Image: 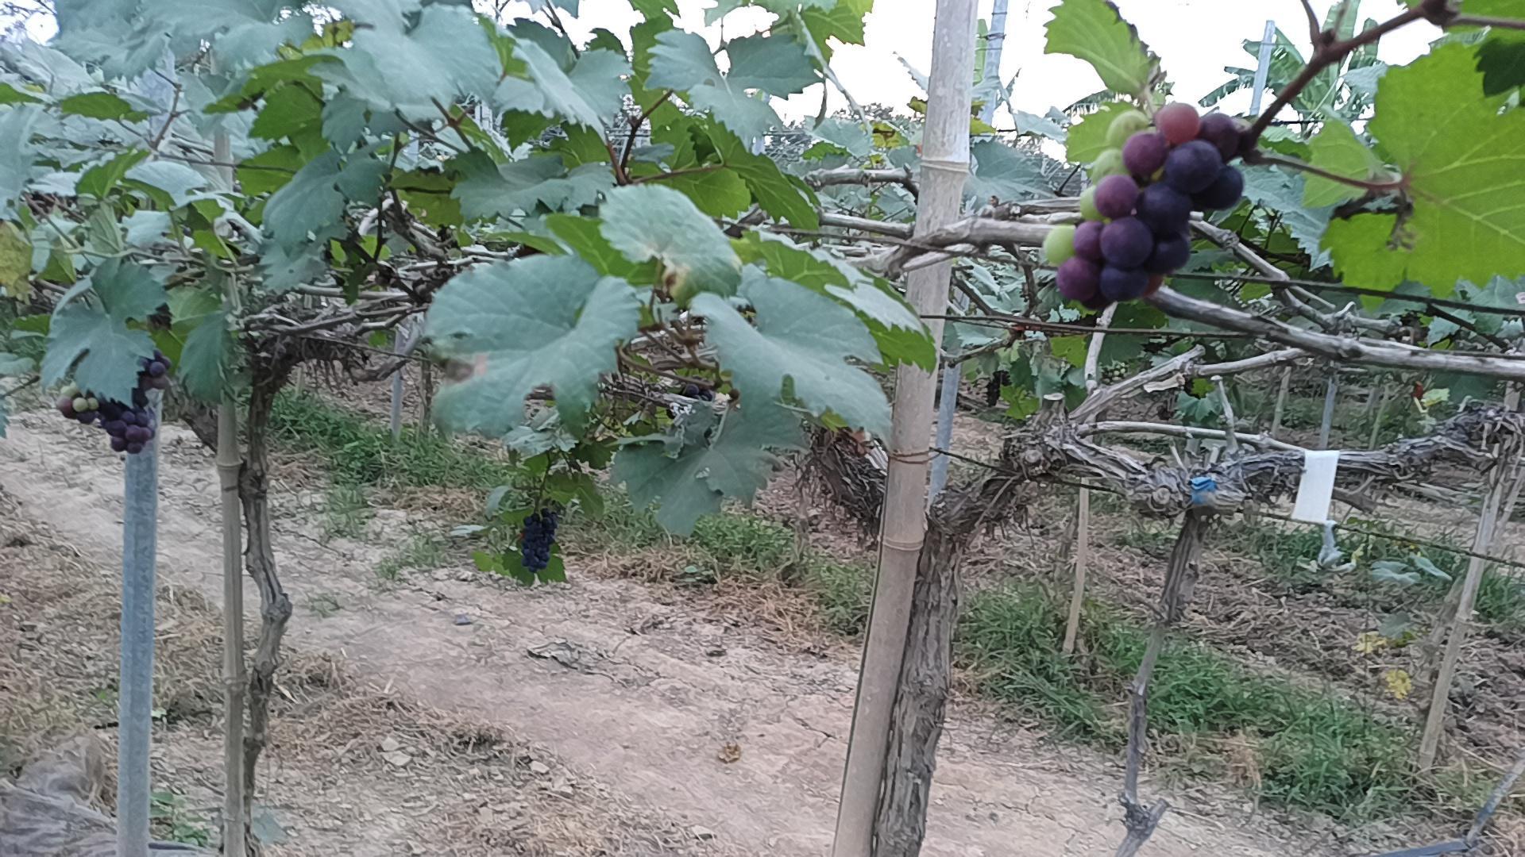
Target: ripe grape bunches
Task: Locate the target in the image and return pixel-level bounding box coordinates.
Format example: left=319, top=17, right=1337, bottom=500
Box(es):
left=666, top=382, right=713, bottom=419
left=986, top=370, right=1013, bottom=408
left=520, top=507, right=558, bottom=573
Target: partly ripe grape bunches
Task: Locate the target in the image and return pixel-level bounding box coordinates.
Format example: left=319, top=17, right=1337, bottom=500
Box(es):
left=1042, top=102, right=1245, bottom=309
left=57, top=349, right=172, bottom=455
